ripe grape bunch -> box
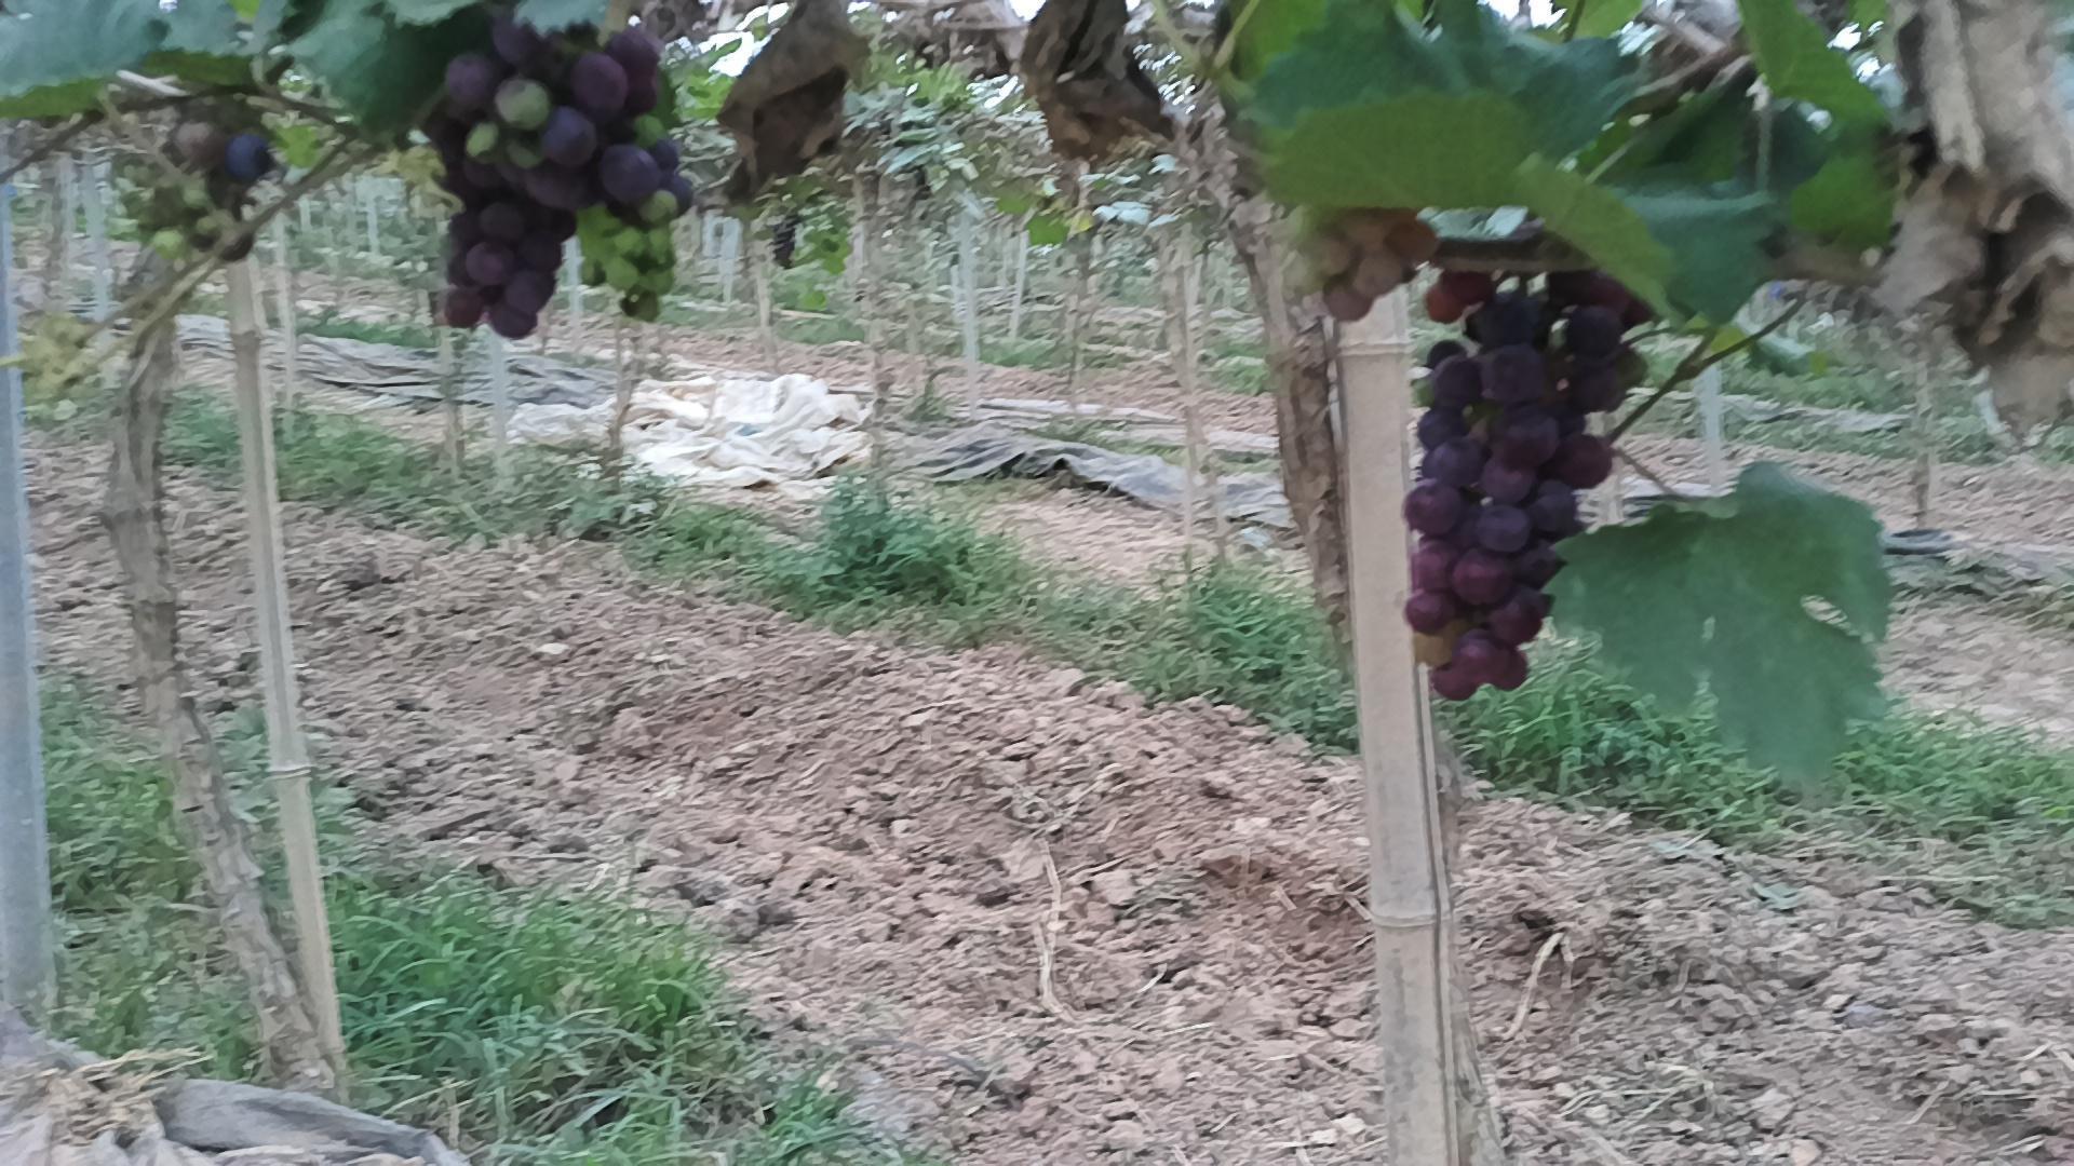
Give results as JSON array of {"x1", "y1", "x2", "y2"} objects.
[{"x1": 1403, "y1": 270, "x2": 1649, "y2": 700}]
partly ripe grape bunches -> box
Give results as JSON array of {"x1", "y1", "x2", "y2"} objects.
[
  {"x1": 422, "y1": 6, "x2": 692, "y2": 339},
  {"x1": 139, "y1": 101, "x2": 279, "y2": 265}
]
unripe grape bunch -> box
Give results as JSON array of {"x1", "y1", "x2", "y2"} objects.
[{"x1": 1294, "y1": 209, "x2": 1438, "y2": 322}]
